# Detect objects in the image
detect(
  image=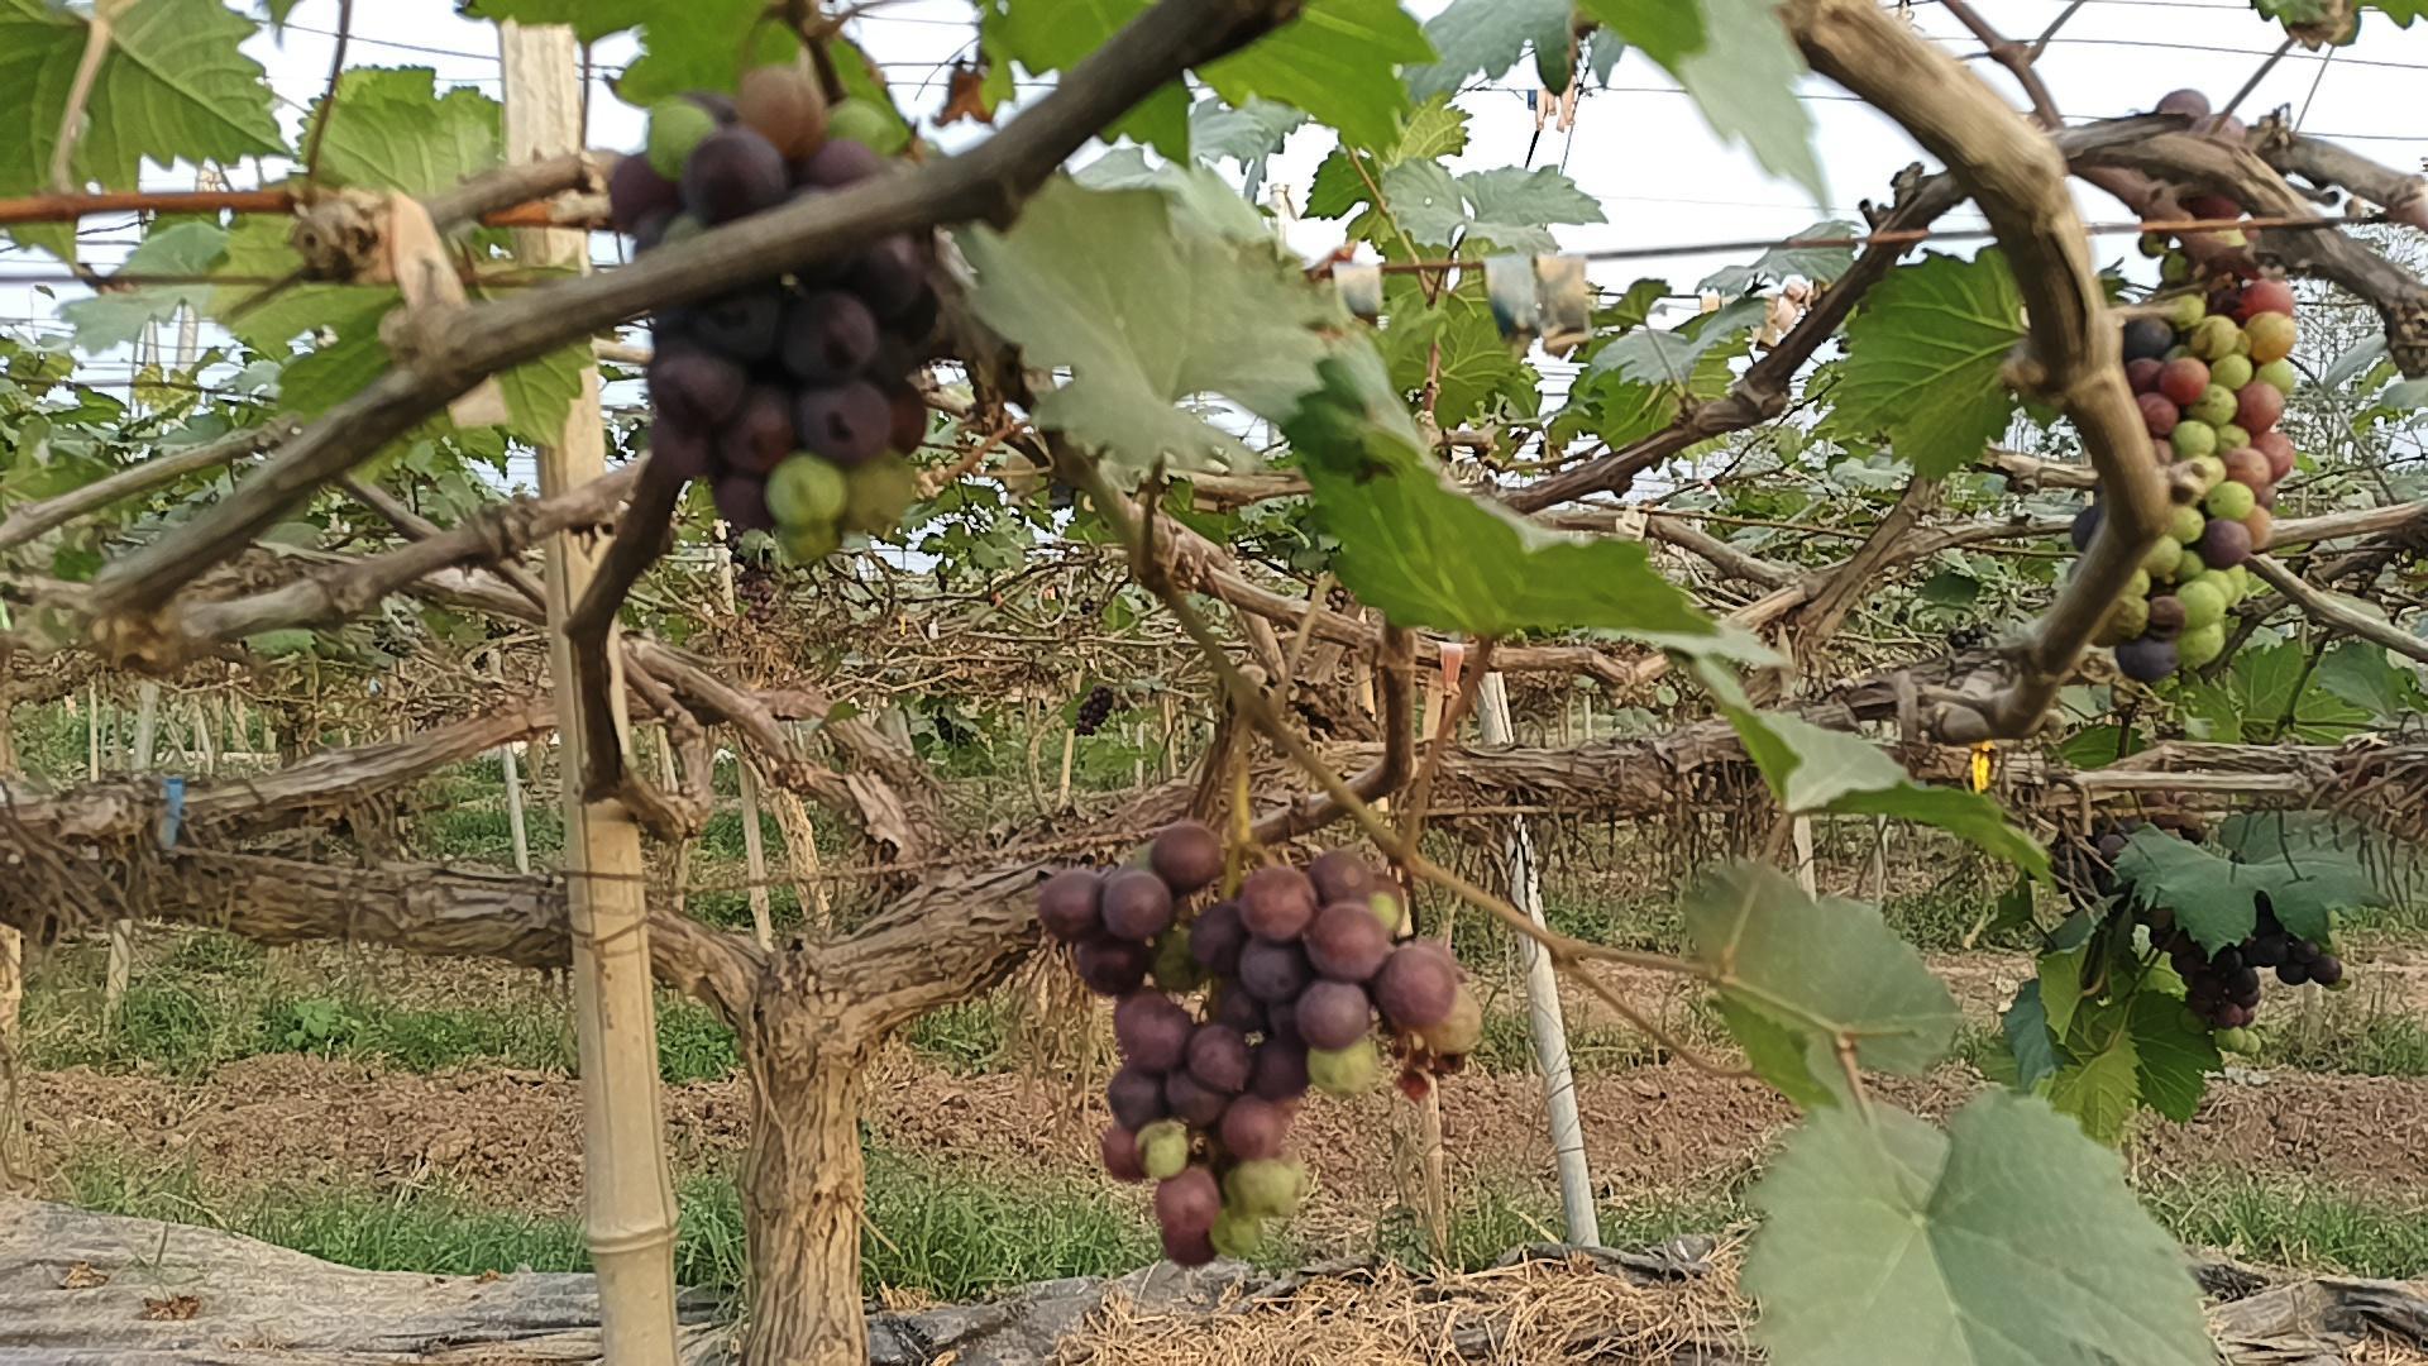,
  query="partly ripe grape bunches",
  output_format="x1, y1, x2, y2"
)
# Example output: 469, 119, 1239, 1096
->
641, 63, 940, 562
2107, 173, 2294, 682
2050, 793, 2343, 1056
1038, 822, 1477, 1264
